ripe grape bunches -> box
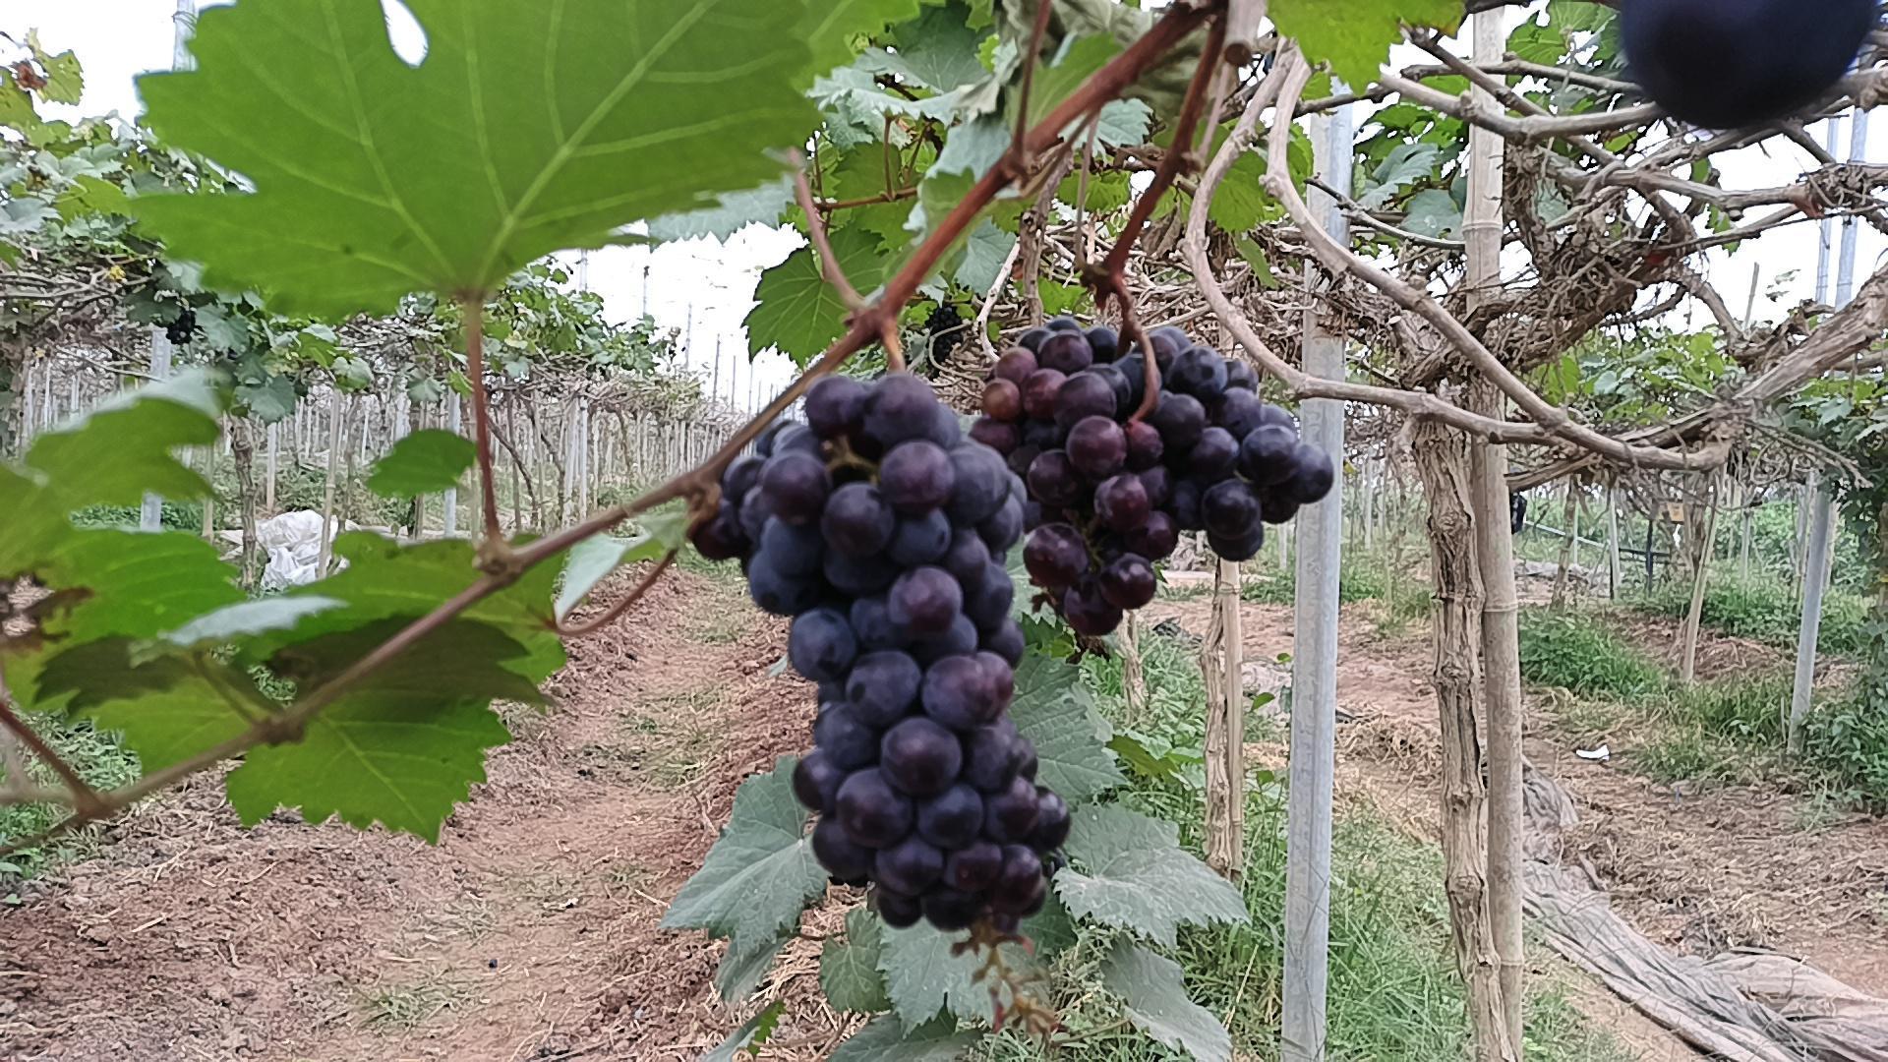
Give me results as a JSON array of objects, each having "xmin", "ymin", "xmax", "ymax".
[
  {"xmin": 726, "ymin": 374, "xmax": 1071, "ymax": 940},
  {"xmin": 968, "ymin": 316, "xmax": 1332, "ymax": 636},
  {"xmin": 921, "ymin": 297, "xmax": 965, "ymax": 382},
  {"xmin": 1597, "ymin": 0, "xmax": 1886, "ymax": 129}
]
